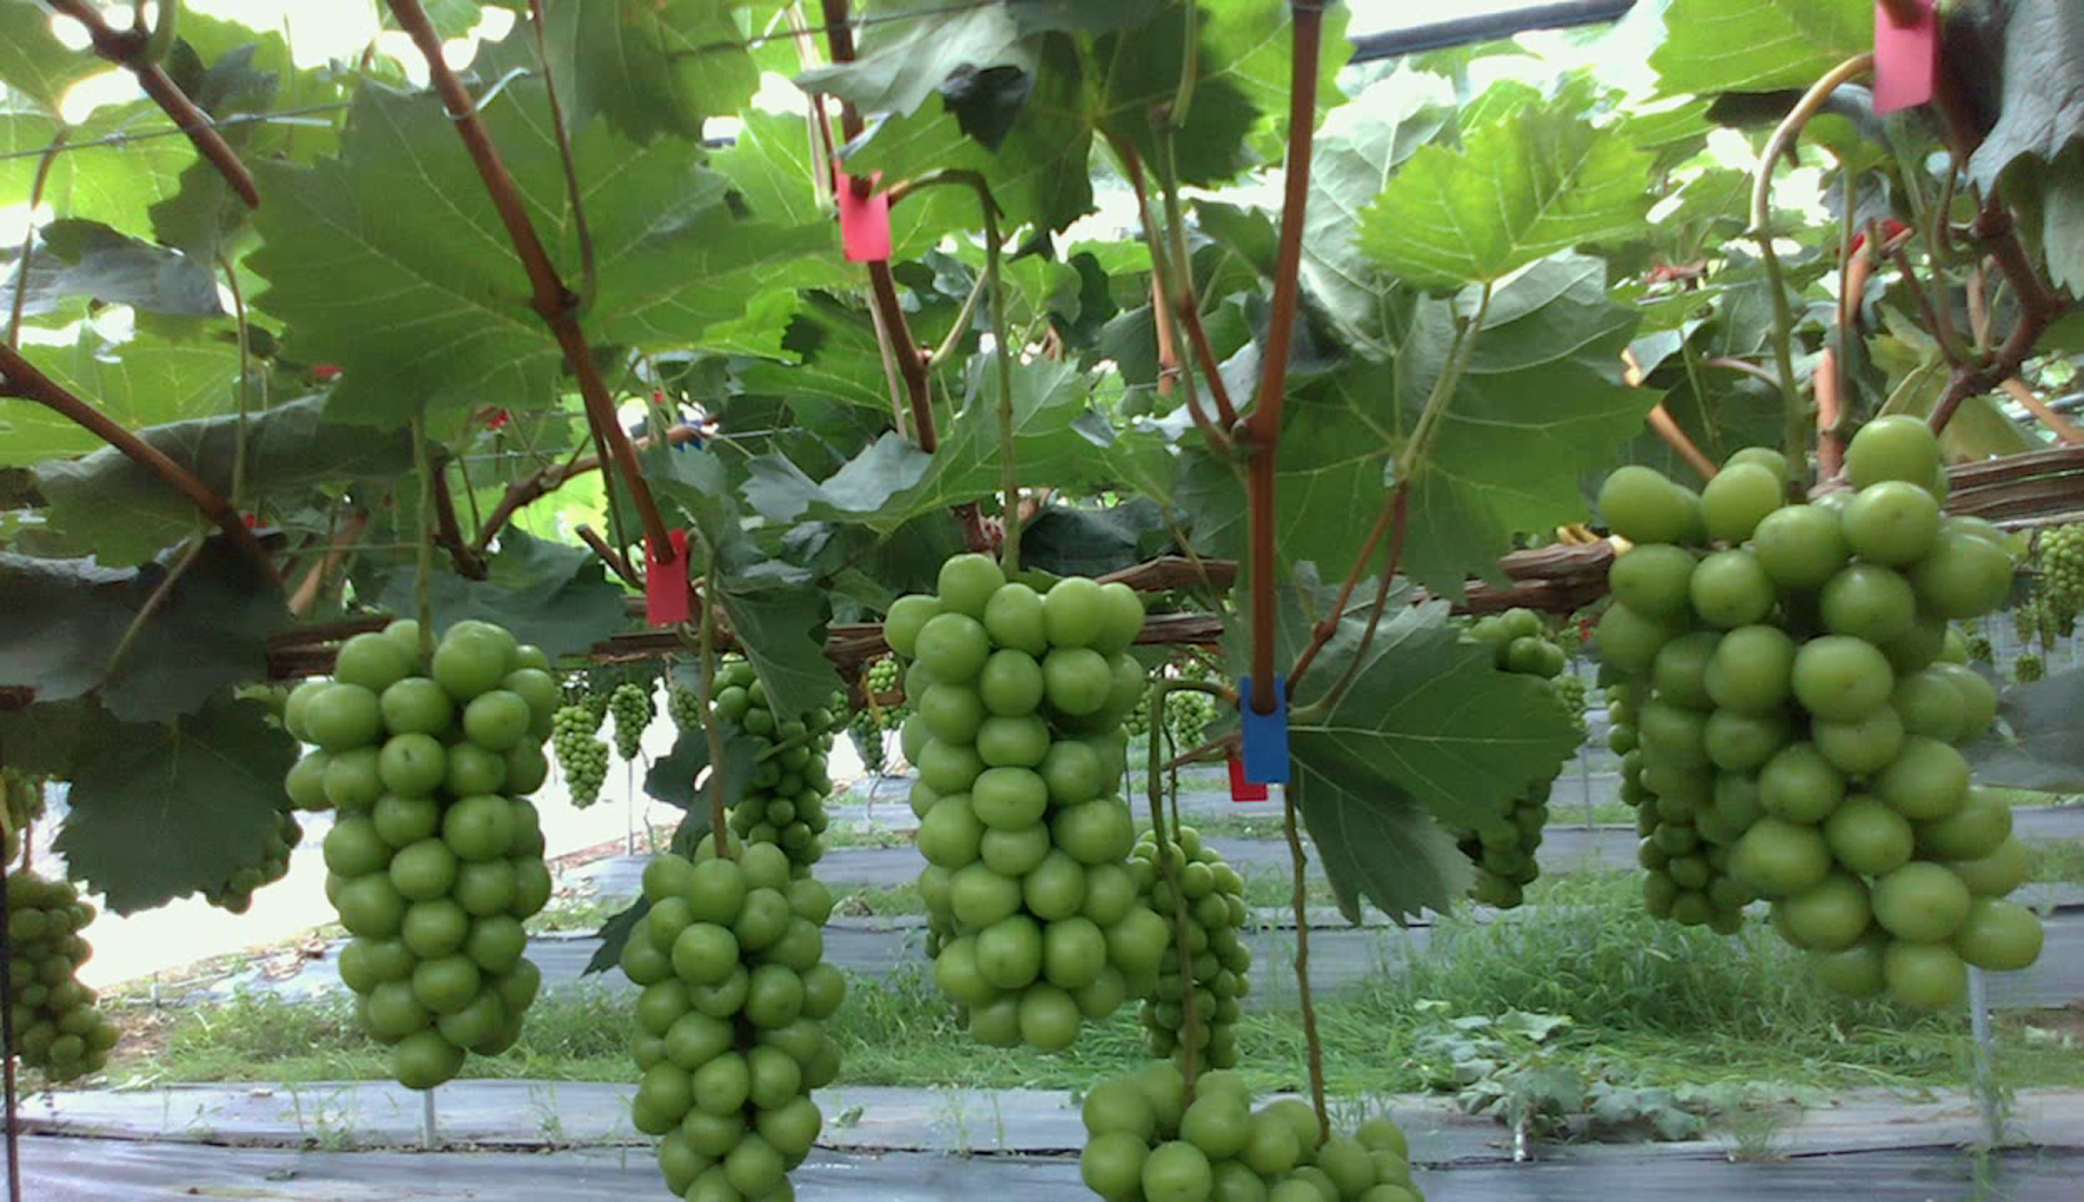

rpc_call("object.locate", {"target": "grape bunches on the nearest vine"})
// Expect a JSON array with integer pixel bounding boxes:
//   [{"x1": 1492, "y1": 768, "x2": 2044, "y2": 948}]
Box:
[
  {"x1": 1596, "y1": 412, "x2": 2041, "y2": 1018},
  {"x1": 625, "y1": 835, "x2": 847, "y2": 1200},
  {"x1": 1077, "y1": 1067, "x2": 1299, "y2": 1200},
  {"x1": 883, "y1": 551, "x2": 1169, "y2": 1060},
  {"x1": 284, "y1": 619, "x2": 556, "y2": 1092},
  {"x1": 1267, "y1": 1098, "x2": 1424, "y2": 1200}
]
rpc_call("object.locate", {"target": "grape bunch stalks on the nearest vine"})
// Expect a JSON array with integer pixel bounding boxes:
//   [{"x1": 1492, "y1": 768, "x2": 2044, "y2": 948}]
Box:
[
  {"x1": 1146, "y1": 676, "x2": 1224, "y2": 1105},
  {"x1": 1743, "y1": 52, "x2": 1869, "y2": 501},
  {"x1": 1284, "y1": 803, "x2": 1331, "y2": 1144},
  {"x1": 412, "y1": 421, "x2": 434, "y2": 669},
  {"x1": 888, "y1": 165, "x2": 1017, "y2": 576},
  {"x1": 693, "y1": 529, "x2": 726, "y2": 851}
]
